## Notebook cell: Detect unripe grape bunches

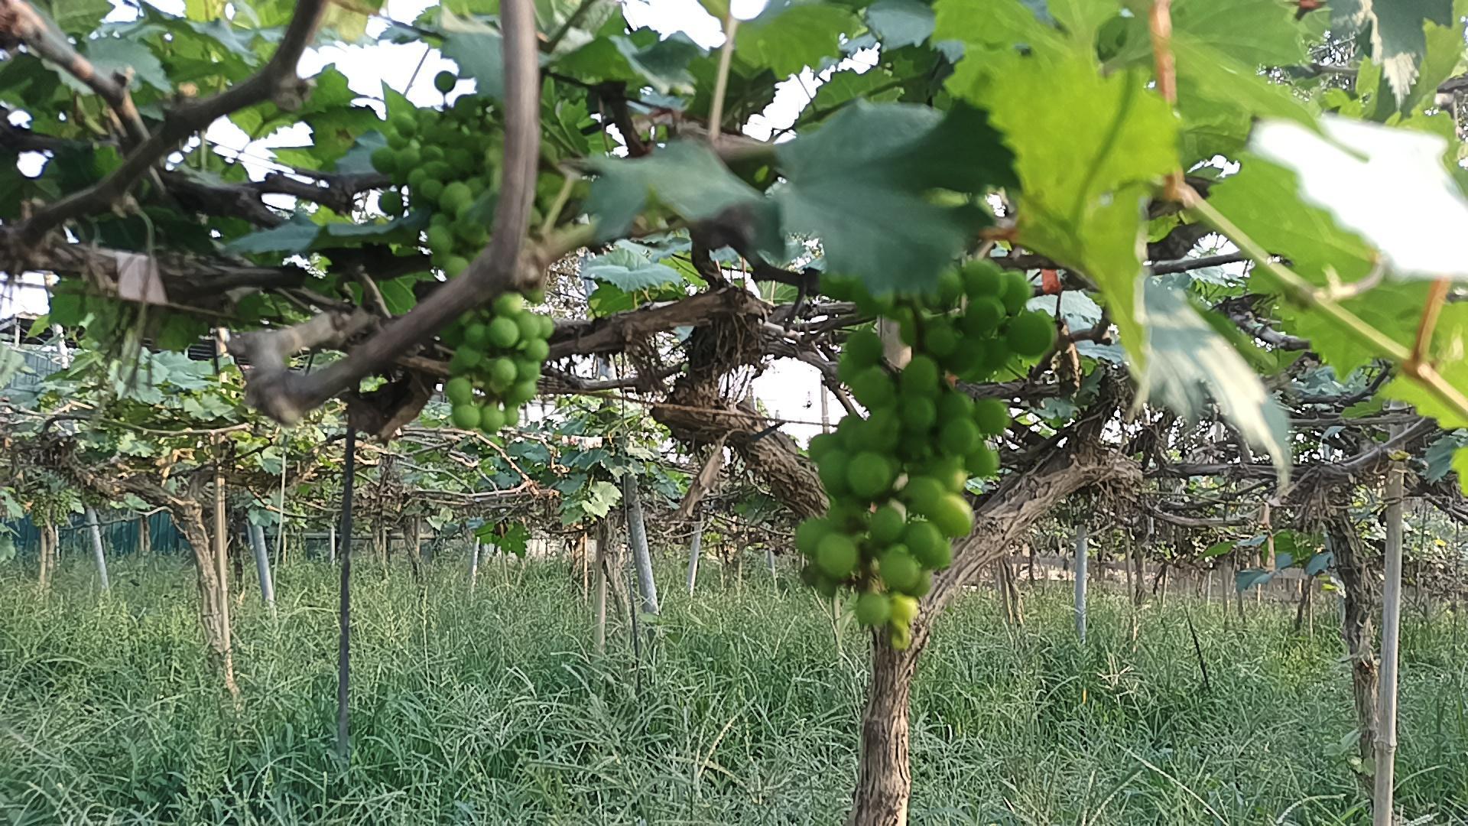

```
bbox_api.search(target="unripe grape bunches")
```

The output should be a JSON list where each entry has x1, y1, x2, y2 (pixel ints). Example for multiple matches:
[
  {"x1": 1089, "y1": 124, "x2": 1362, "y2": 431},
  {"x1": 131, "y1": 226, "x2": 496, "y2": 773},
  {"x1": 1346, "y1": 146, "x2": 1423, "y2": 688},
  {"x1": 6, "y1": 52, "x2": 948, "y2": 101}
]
[
  {"x1": 370, "y1": 70, "x2": 567, "y2": 431},
  {"x1": 797, "y1": 260, "x2": 1054, "y2": 649}
]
